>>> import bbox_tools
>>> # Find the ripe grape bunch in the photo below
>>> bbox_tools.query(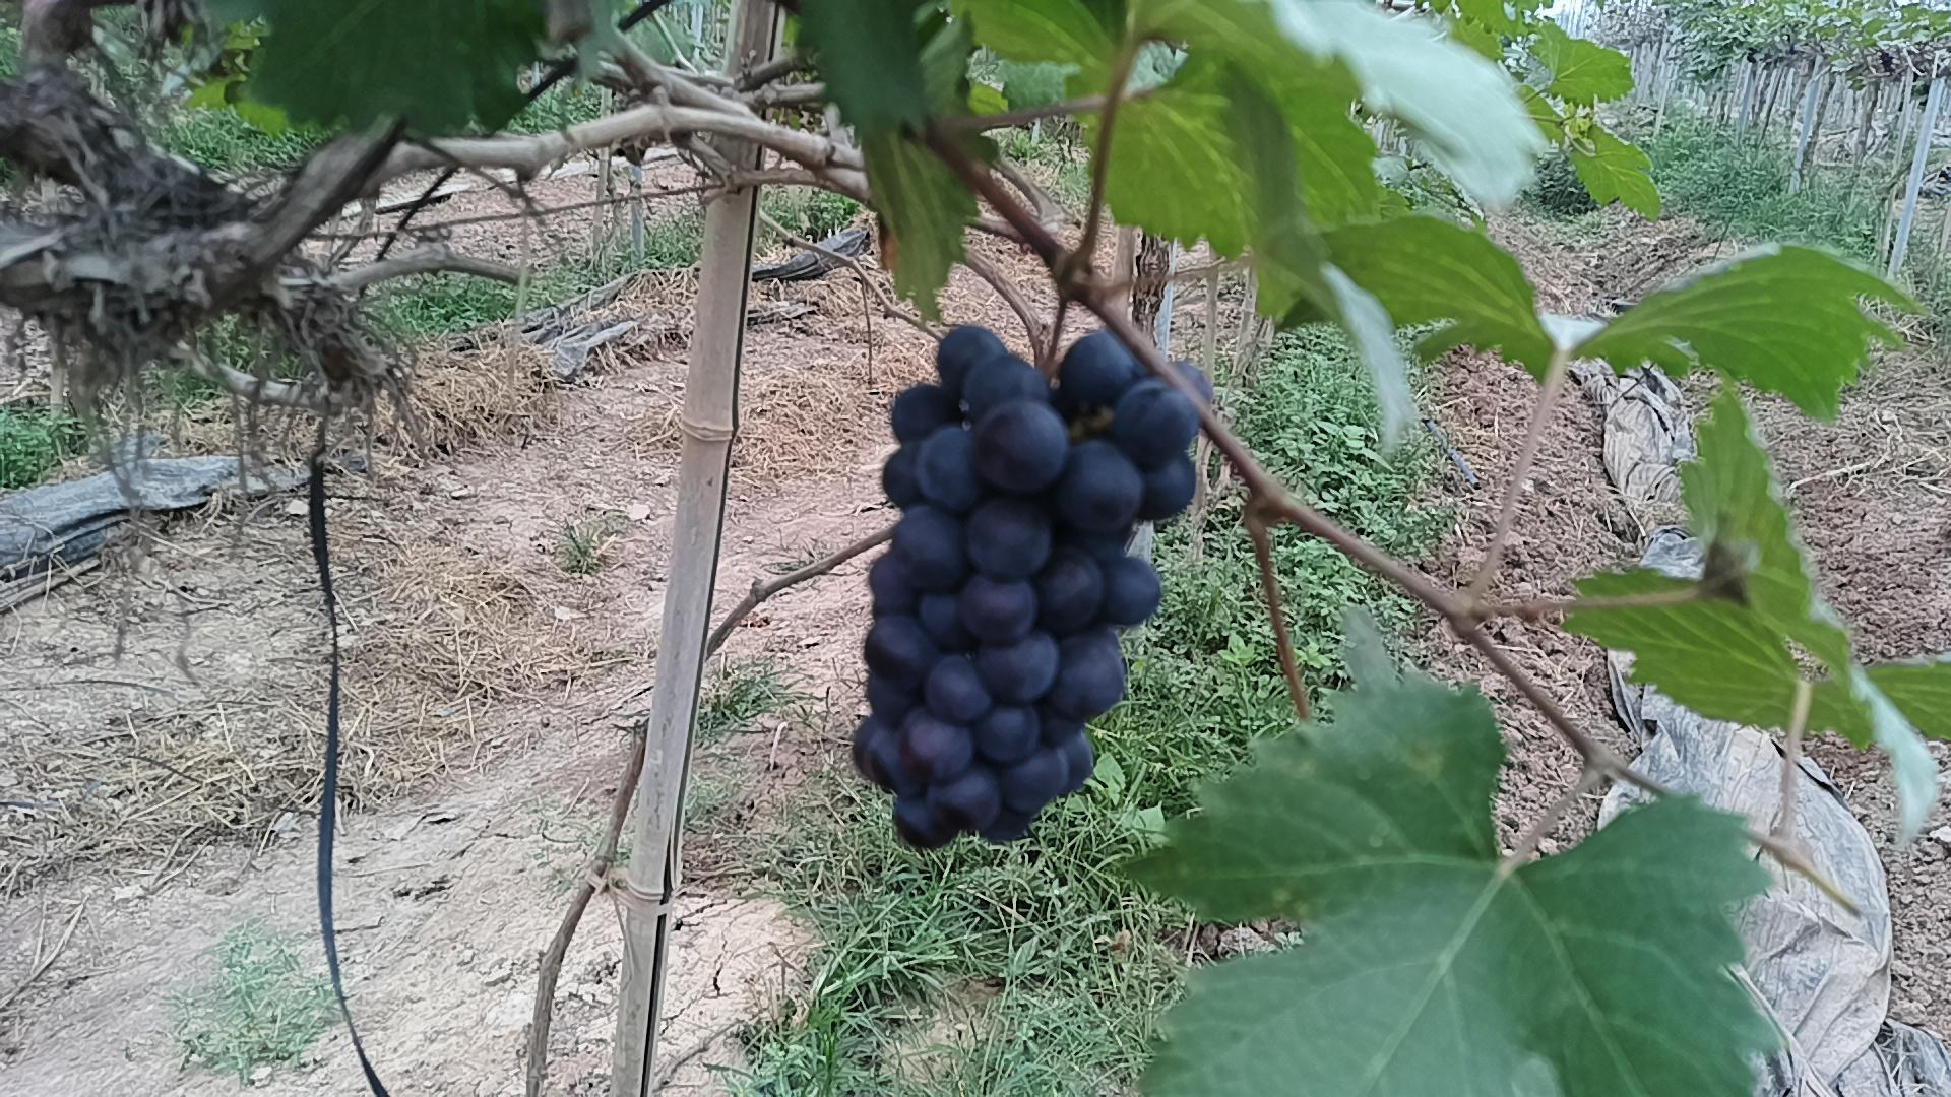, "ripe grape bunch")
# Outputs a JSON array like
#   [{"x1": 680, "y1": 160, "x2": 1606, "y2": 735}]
[{"x1": 855, "y1": 327, "x2": 1210, "y2": 847}]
